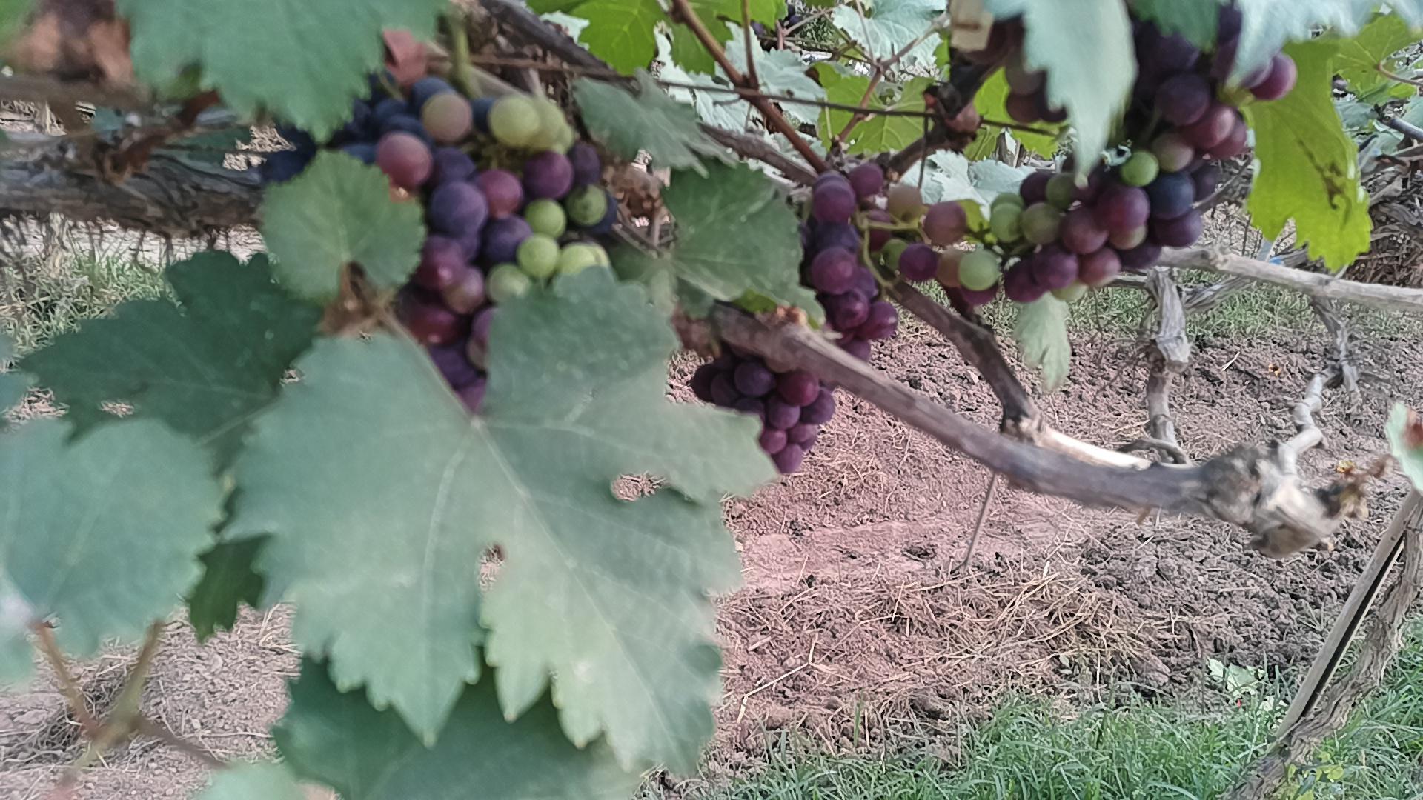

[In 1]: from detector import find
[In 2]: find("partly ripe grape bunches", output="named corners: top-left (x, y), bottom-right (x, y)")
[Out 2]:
top-left (864, 0), bottom-right (1300, 304)
top-left (269, 76), bottom-right (614, 405)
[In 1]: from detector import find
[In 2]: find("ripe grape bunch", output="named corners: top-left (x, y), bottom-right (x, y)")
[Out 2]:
top-left (689, 161), bottom-right (903, 473)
